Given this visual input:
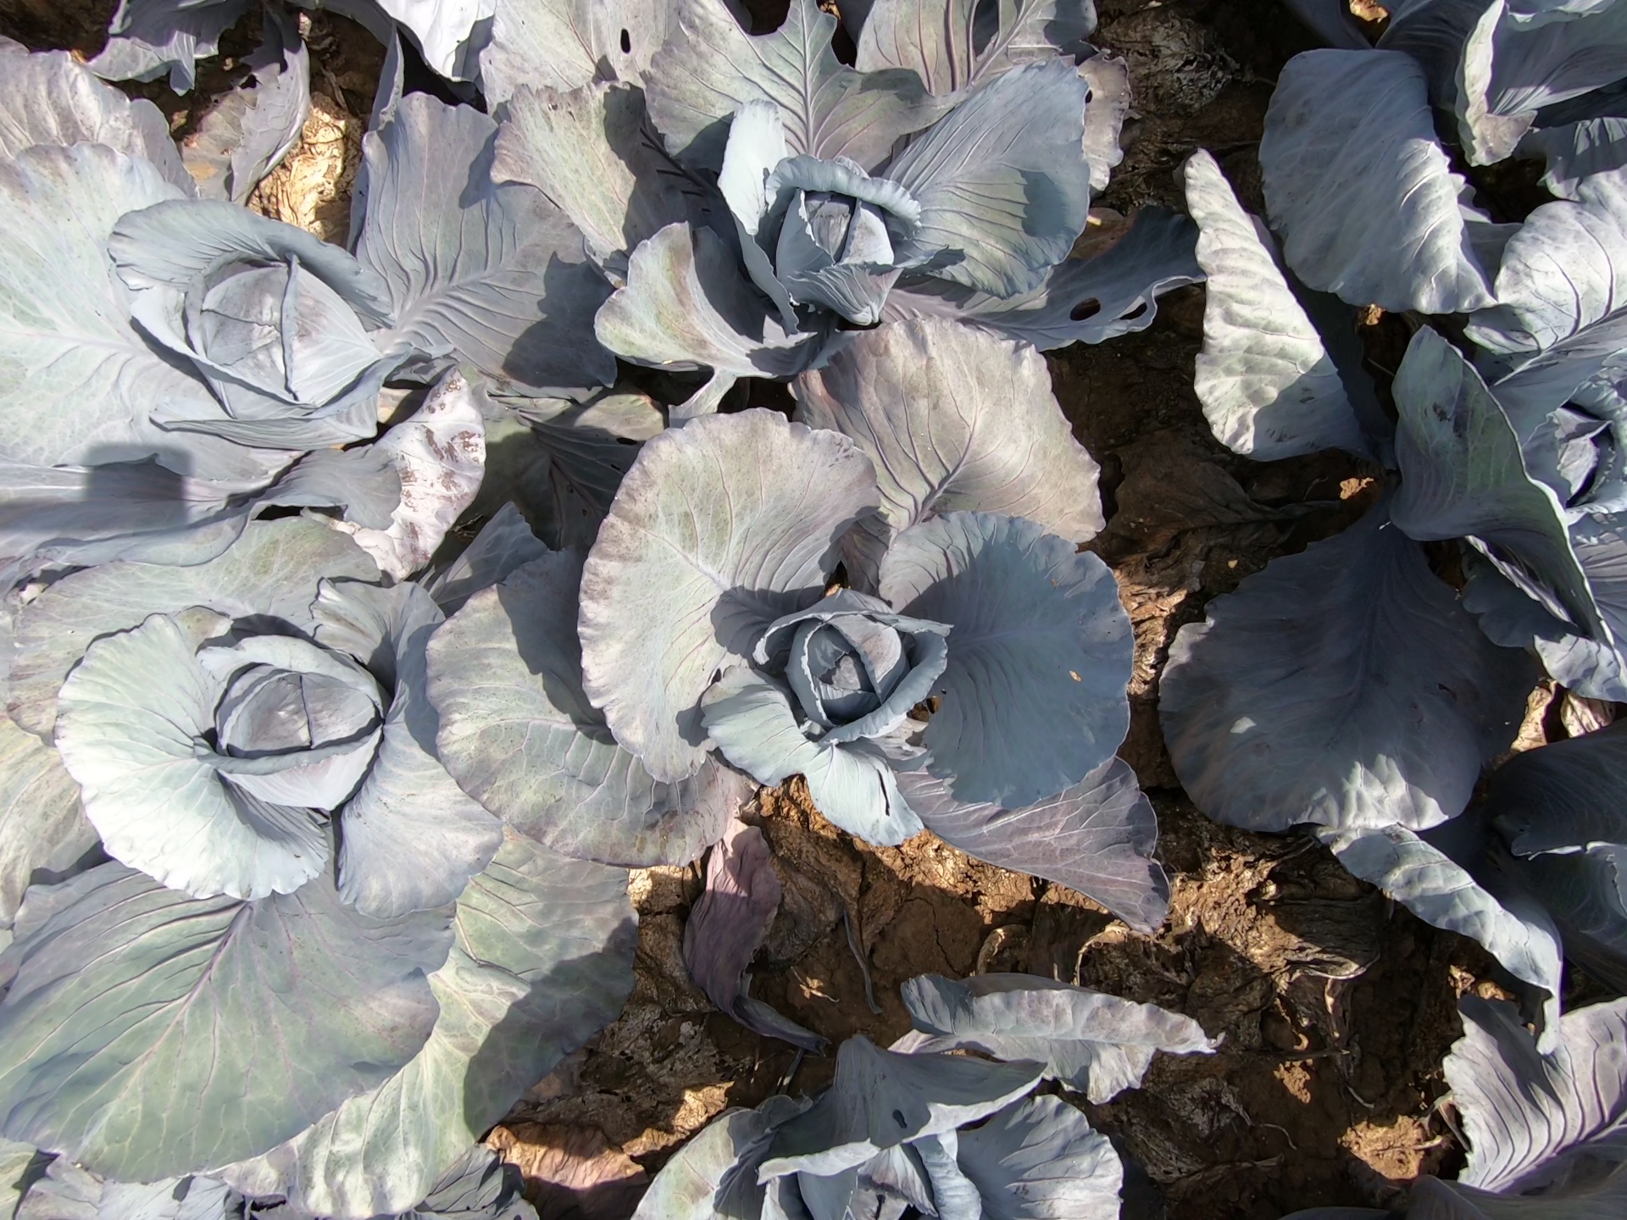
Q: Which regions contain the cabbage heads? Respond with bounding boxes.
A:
[192,268,365,417]
[786,602,906,719]
[795,1094,951,1218]
[777,187,886,291]
[220,652,382,805]
[1493,405,1603,514]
